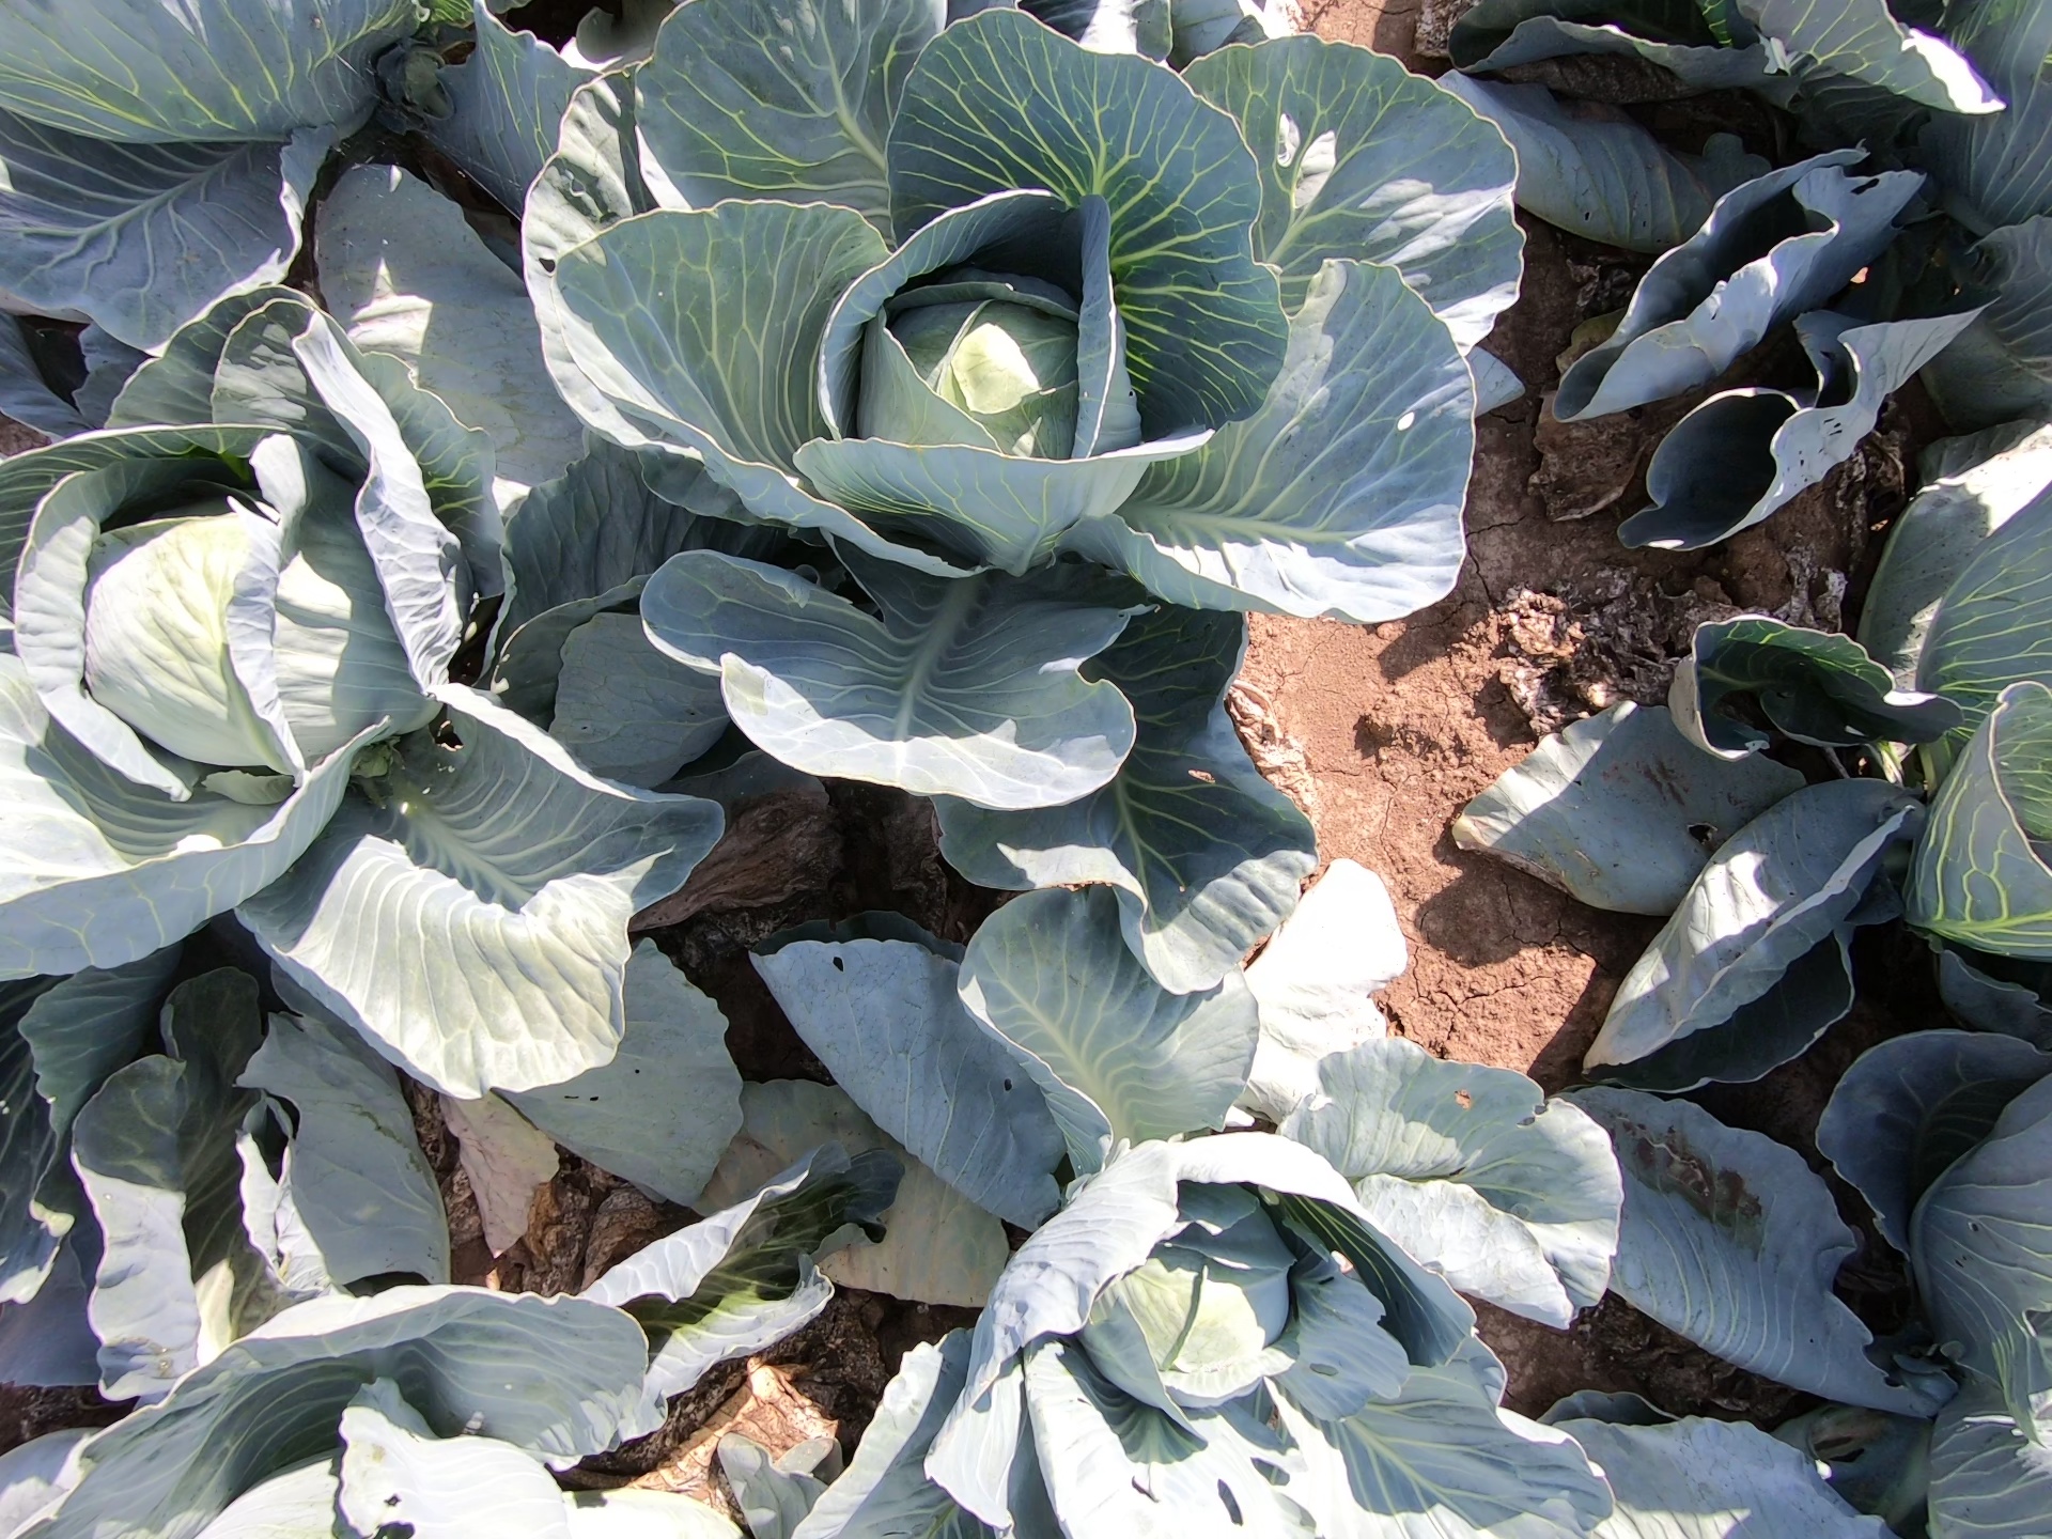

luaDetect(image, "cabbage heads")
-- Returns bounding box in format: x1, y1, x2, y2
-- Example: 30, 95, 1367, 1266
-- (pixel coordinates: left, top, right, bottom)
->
73, 488, 397, 771
1097, 1185, 1295, 1406
204, 1455, 519, 1537
871, 264, 1110, 529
